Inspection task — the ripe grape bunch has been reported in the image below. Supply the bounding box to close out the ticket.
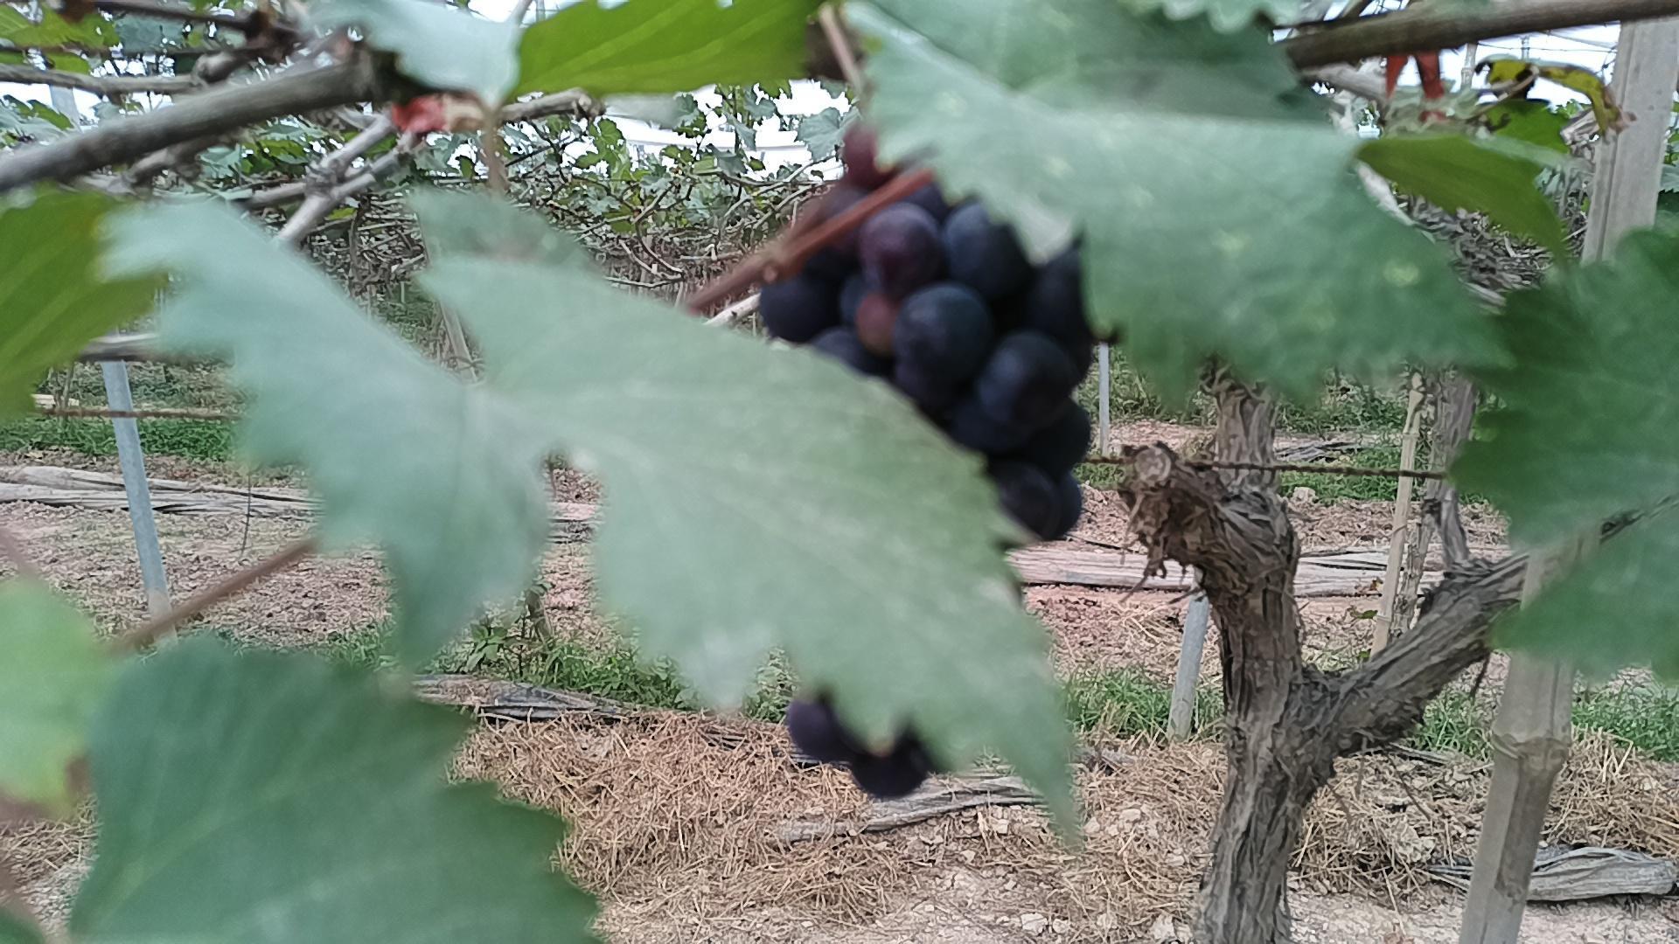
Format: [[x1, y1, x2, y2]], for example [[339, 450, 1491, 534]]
[[760, 122, 1096, 803]]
